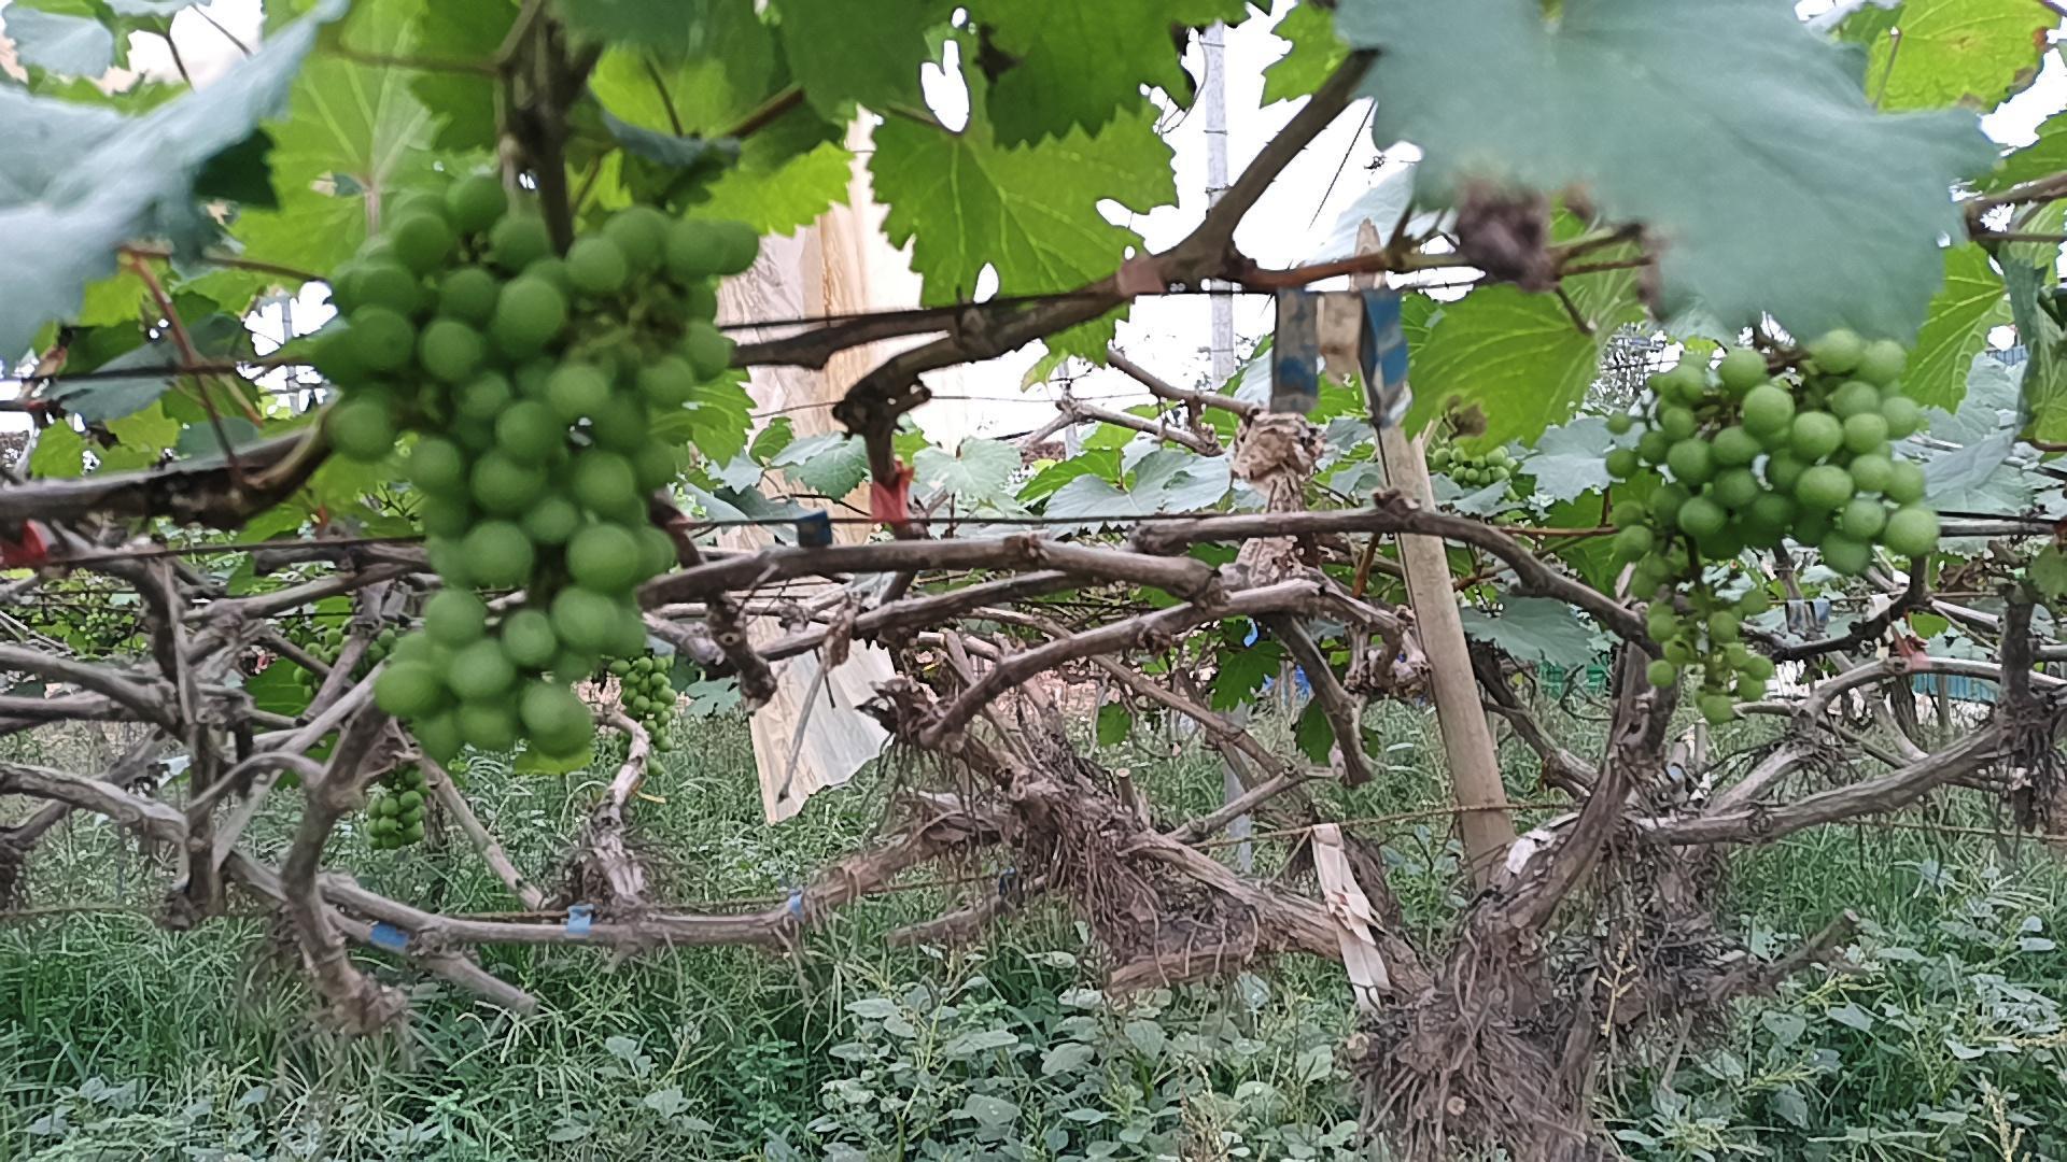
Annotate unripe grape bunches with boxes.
[318,176,759,761]
[1719,327,1940,573]
[1605,409,1774,723]
[293,665,324,703]
[606,648,679,752]
[348,627,399,685]
[1650,353,1800,559]
[1433,444,1517,490]
[304,627,352,668]
[363,760,431,849]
